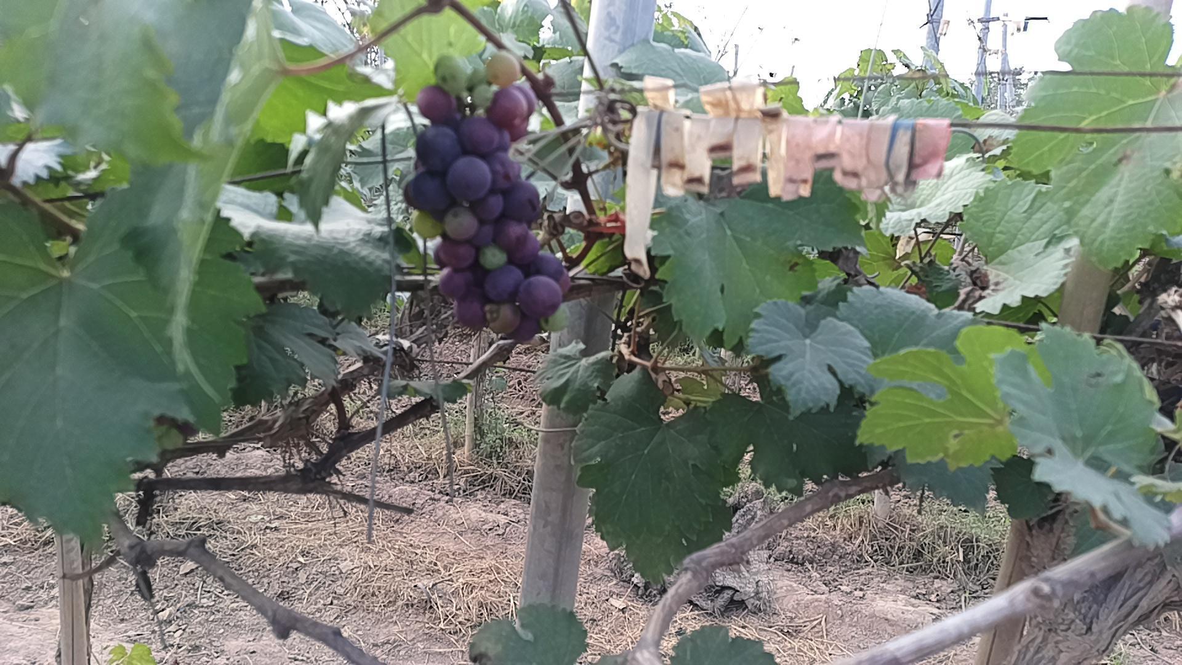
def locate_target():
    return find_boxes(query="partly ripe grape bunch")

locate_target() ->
[404,52,571,341]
